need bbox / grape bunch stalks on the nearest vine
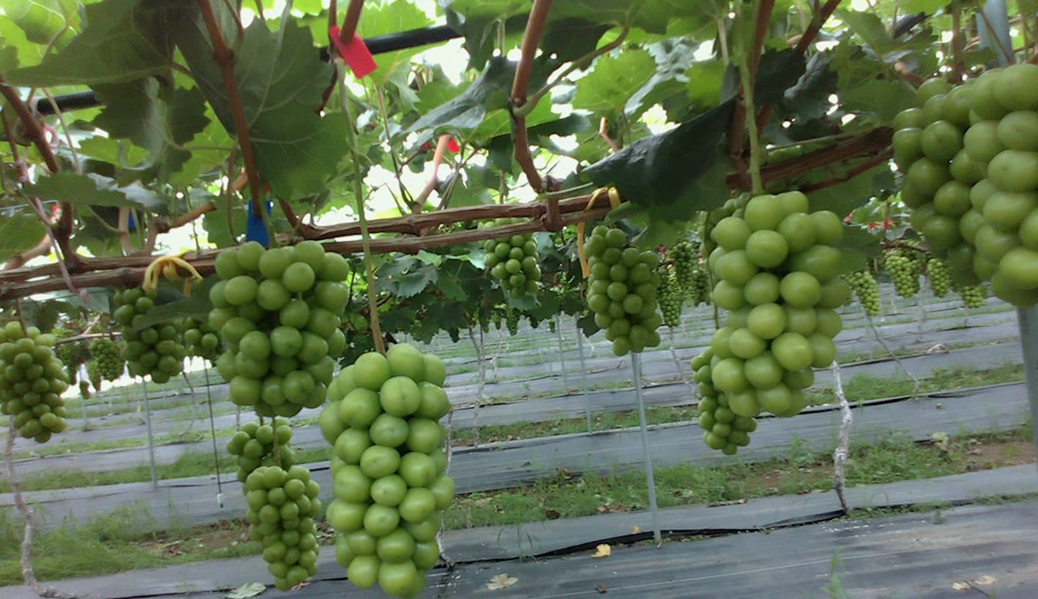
[737,42,763,192]
[951,0,962,82]
[337,66,386,354]
[258,184,278,247]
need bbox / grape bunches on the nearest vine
[208,240,348,419]
[962,63,1037,309]
[708,191,850,418]
[892,77,983,287]
[318,343,455,598]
